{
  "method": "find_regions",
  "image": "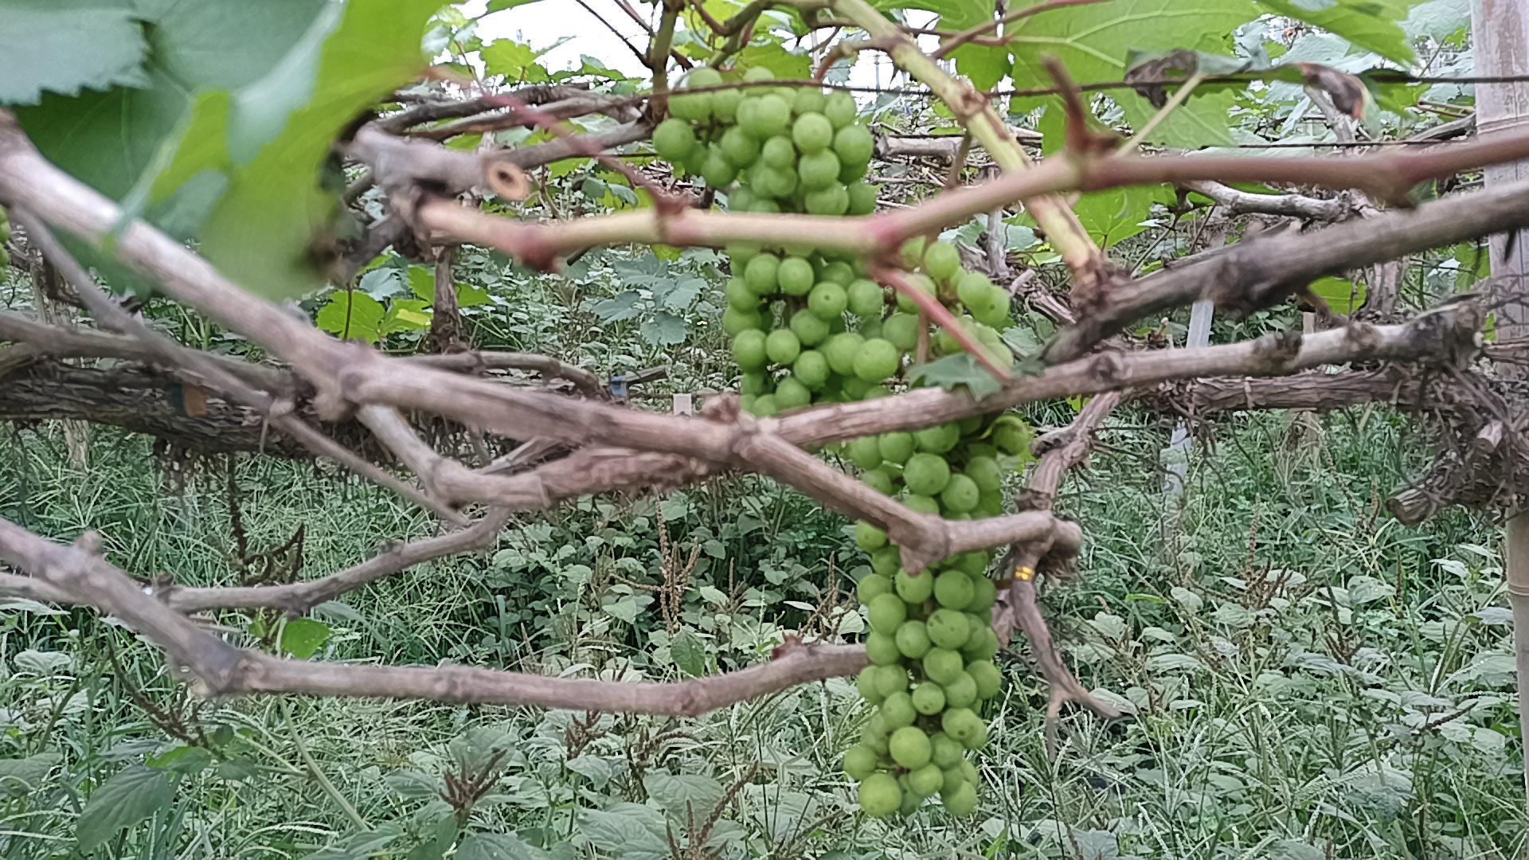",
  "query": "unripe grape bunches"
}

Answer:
[654,63,897,420]
[827,238,1024,817]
